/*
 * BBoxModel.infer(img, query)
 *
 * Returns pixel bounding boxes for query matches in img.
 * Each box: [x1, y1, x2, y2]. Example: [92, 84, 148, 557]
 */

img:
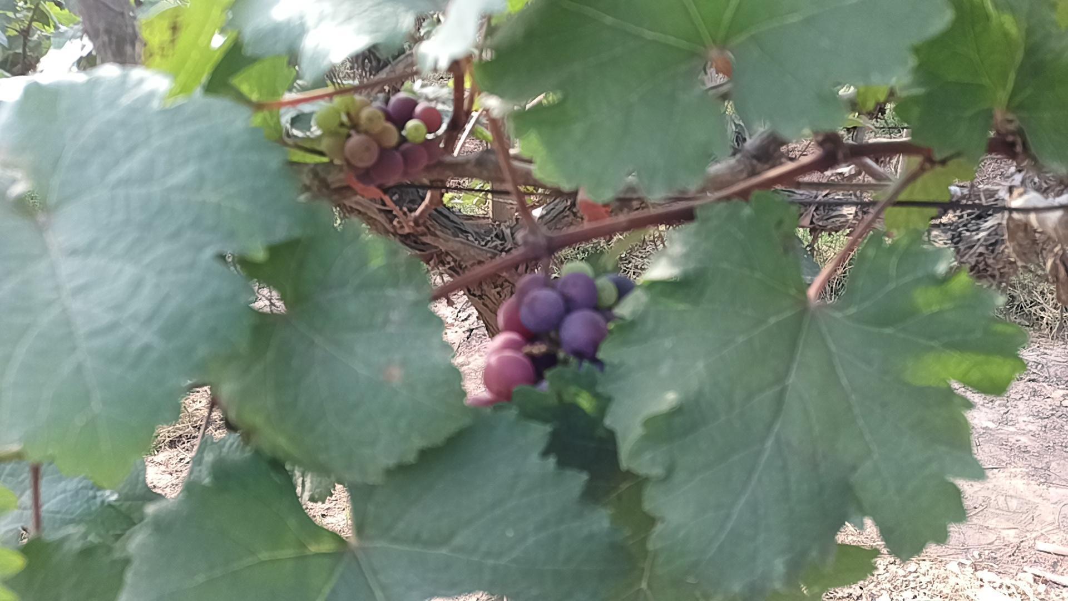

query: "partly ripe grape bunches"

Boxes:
[312, 92, 442, 185]
[467, 261, 637, 406]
